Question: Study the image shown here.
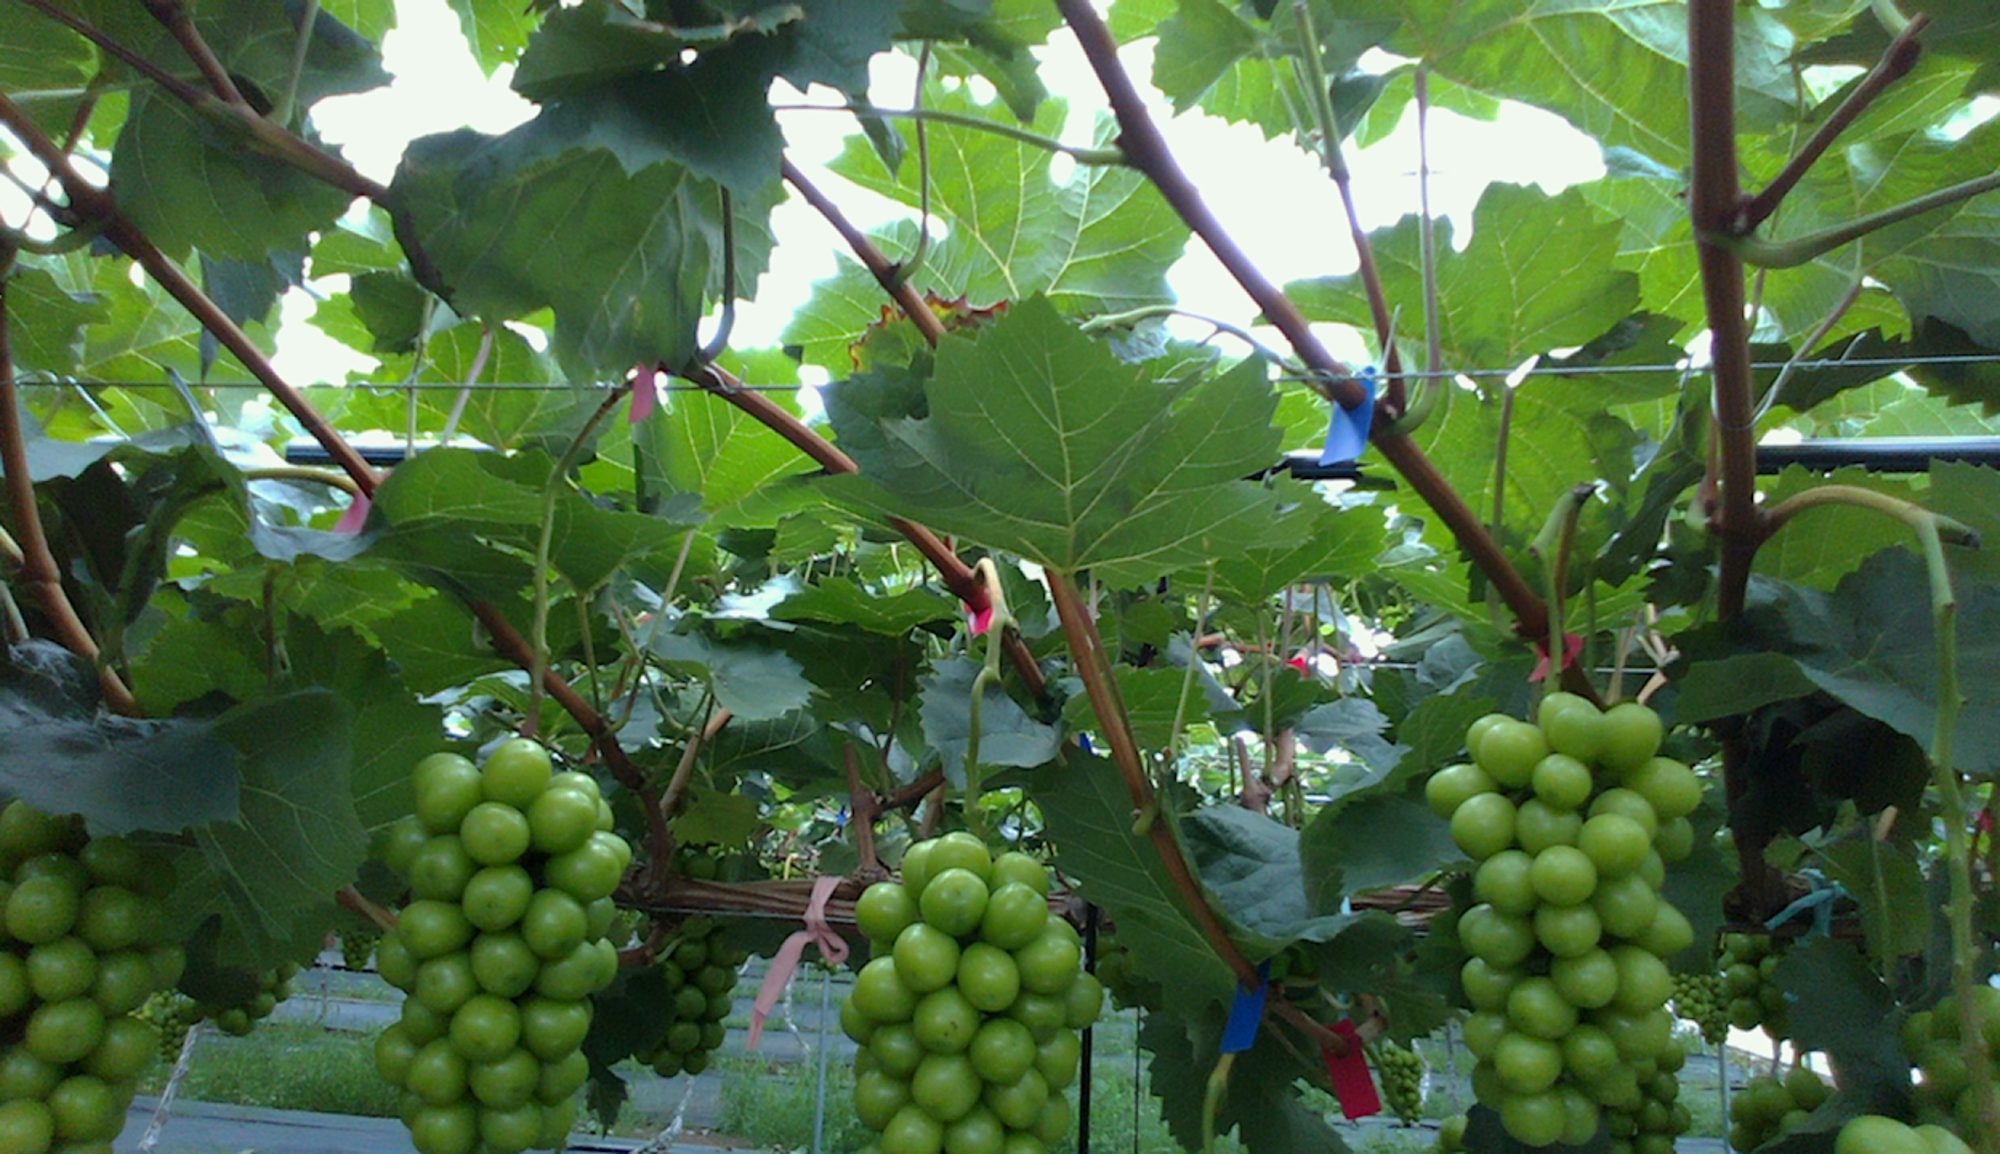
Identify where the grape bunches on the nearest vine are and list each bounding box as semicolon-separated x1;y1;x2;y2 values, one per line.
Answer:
1904;984;1998;1148
2;798;184;1151
375;737;630;1152
1837;1112;1994;1152
837;830;1103;1152
1426;691;1702;1149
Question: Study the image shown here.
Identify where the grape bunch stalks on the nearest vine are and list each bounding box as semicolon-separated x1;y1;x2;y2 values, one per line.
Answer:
1768;484;1998;1149
966;558;1010;837
514;381;633;742
1532;494;1572;694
